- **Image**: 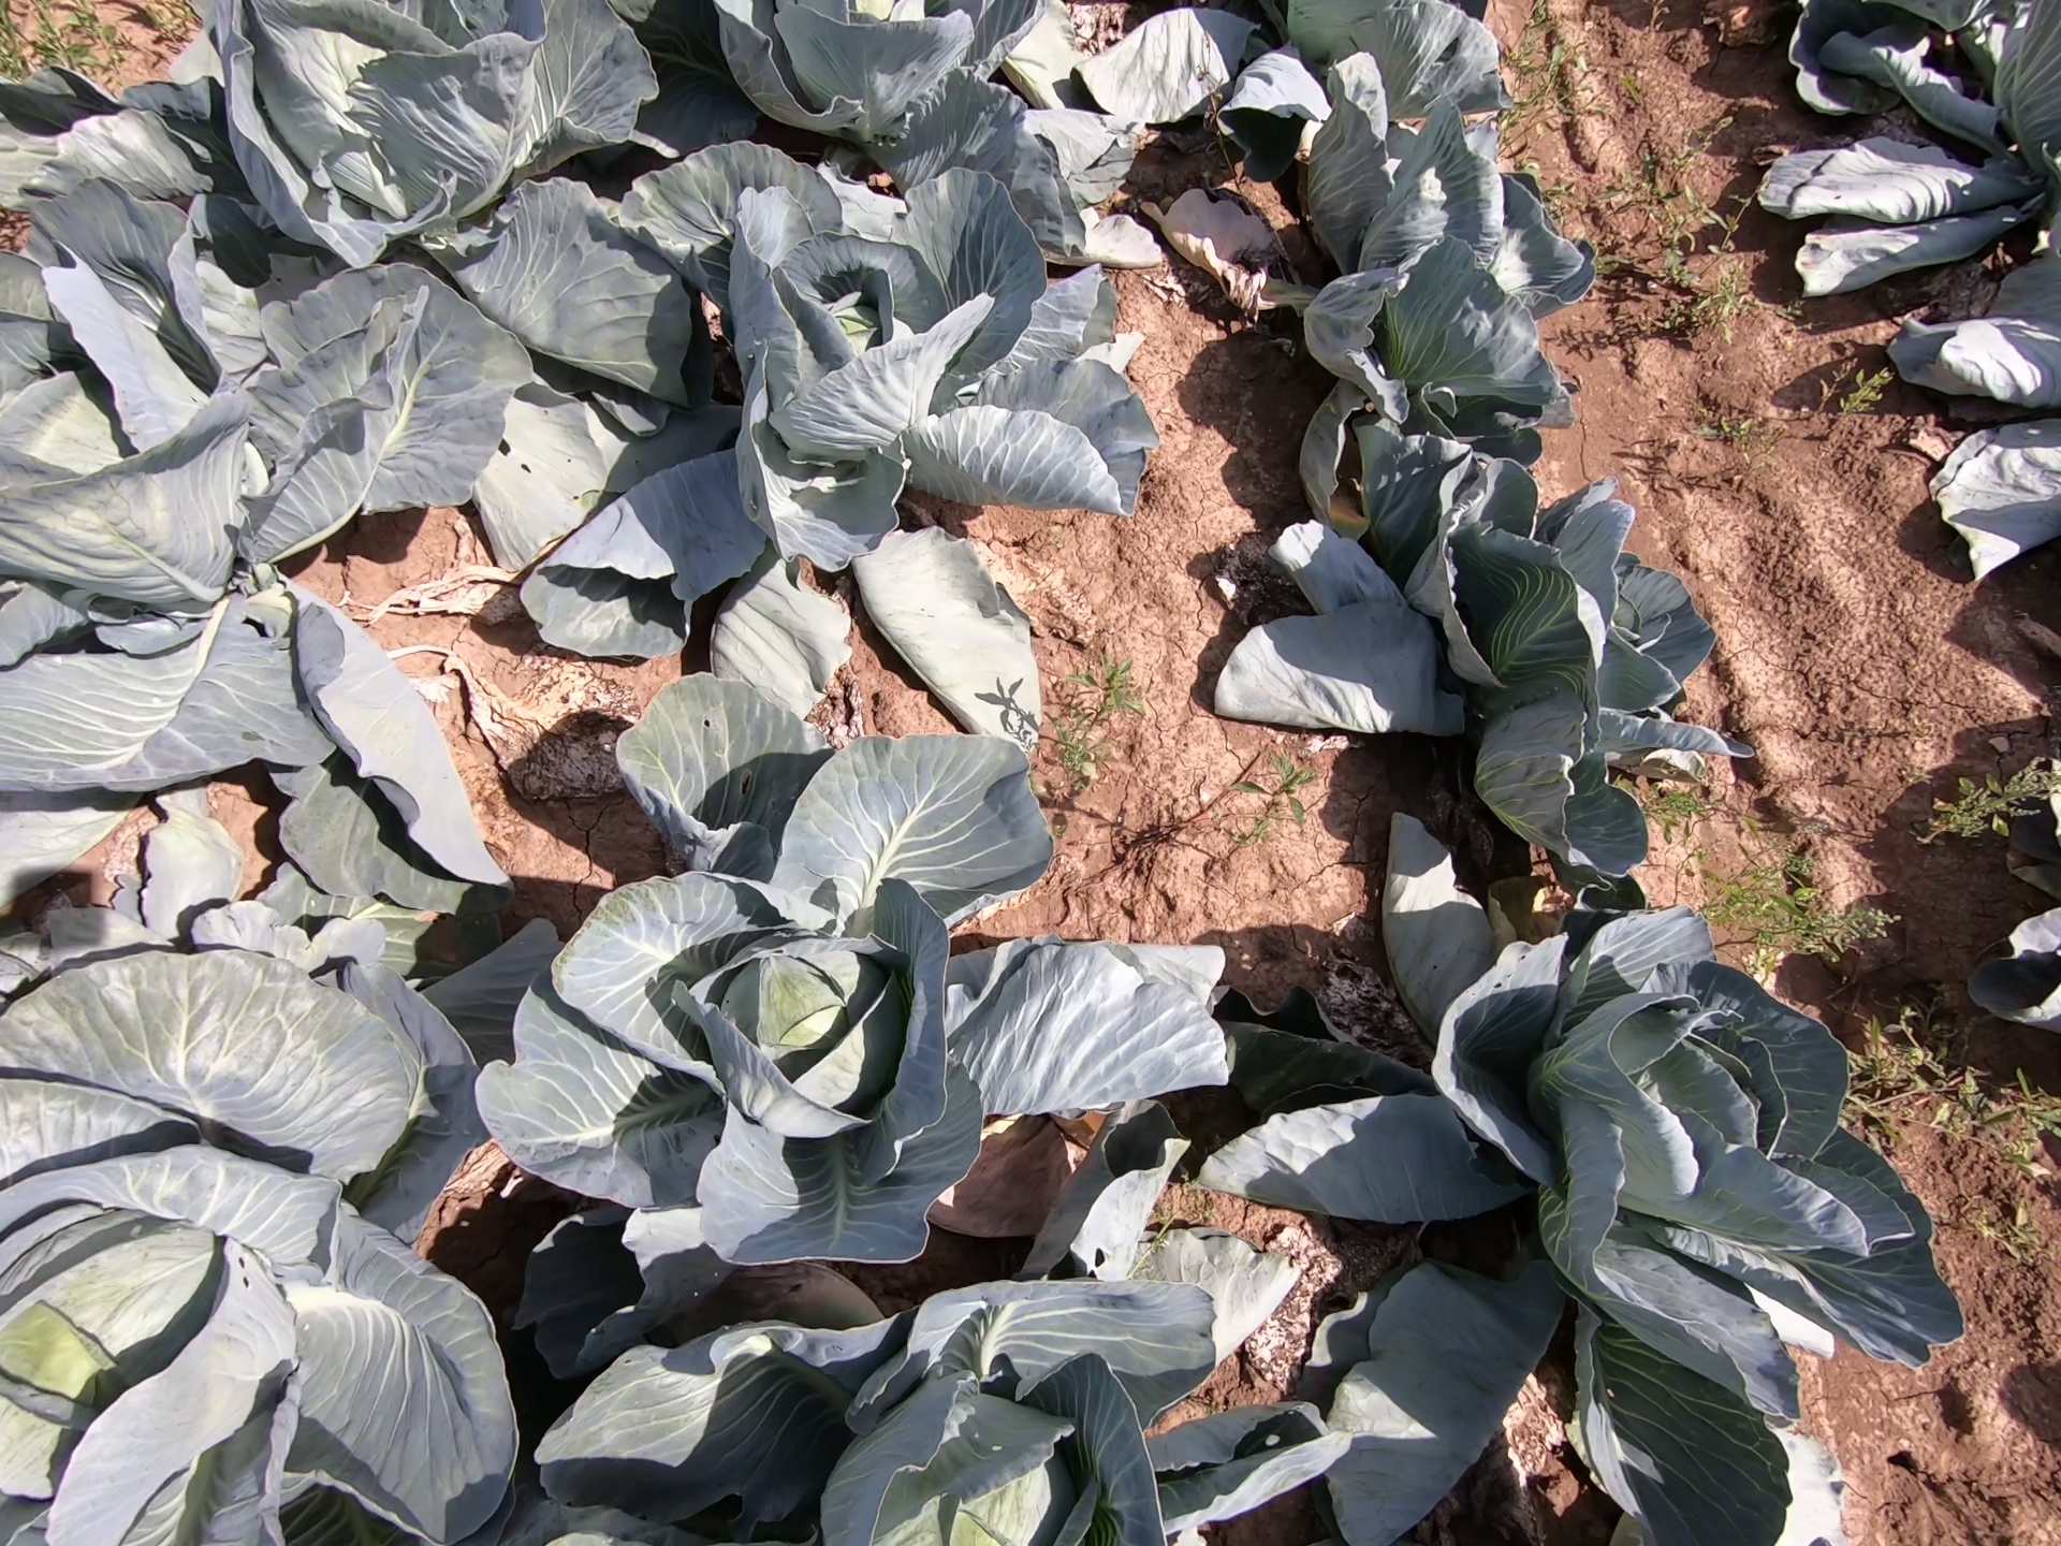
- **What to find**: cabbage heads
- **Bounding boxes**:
[1,377,228,600]
[263,0,476,194]
[1582,1036,1736,1208]
[781,1,929,113]
[1494,579,1607,704]
[718,943,900,1126]
[833,1391,1084,1545]
[1,1210,272,1502]
[792,302,918,423]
